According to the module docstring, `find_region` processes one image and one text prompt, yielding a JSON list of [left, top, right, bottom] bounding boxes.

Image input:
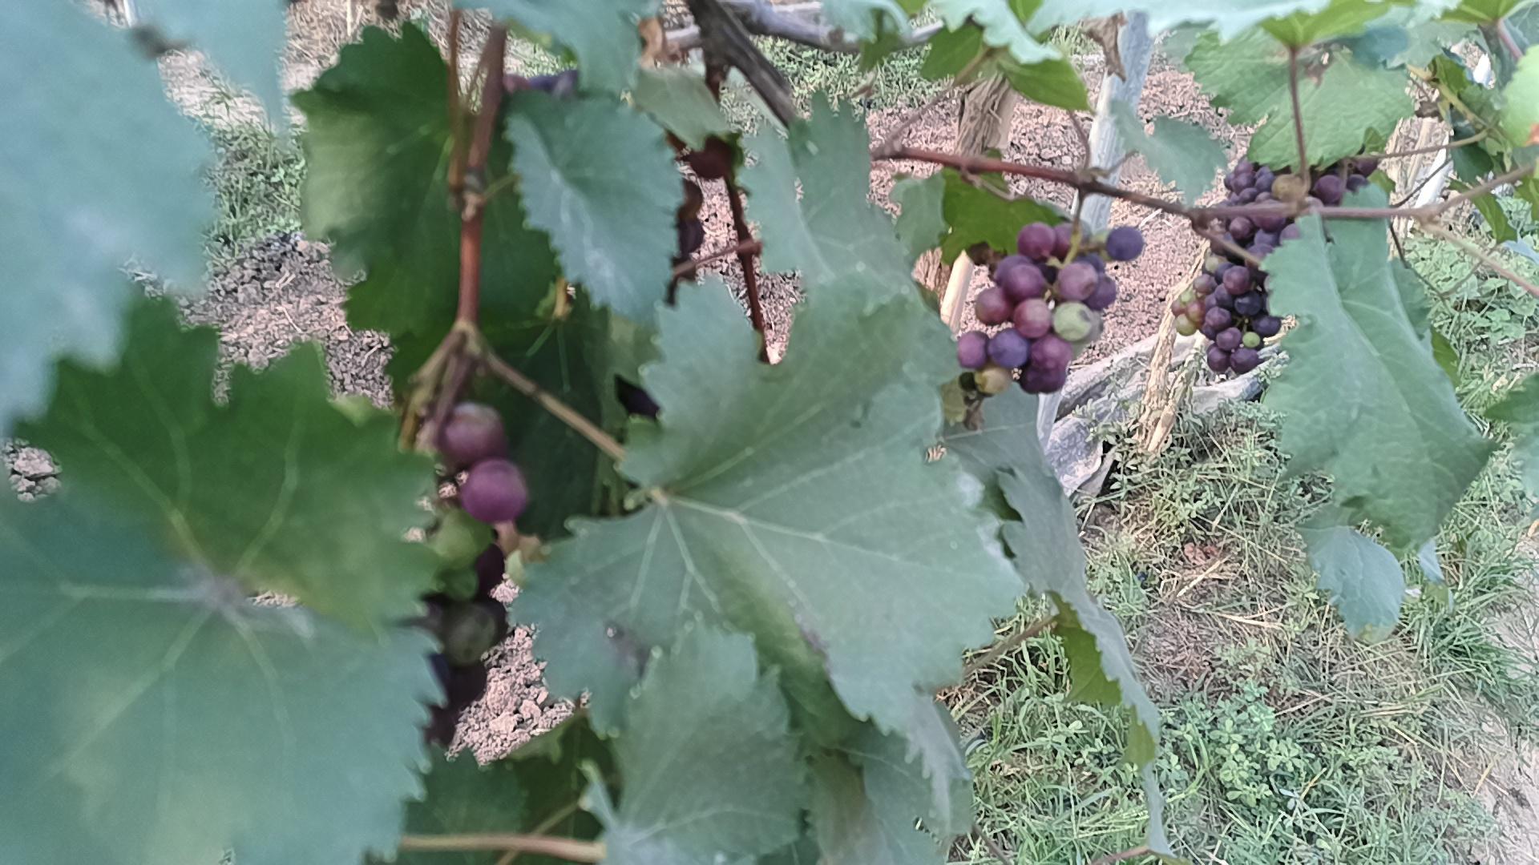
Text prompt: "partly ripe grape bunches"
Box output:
[[418, 400, 527, 748], [947, 223, 1145, 427], [1171, 158, 1375, 373]]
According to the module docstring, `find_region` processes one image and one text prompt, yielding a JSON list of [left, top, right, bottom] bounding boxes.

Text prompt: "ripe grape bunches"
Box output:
[[667, 135, 739, 266], [503, 70, 578, 95]]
